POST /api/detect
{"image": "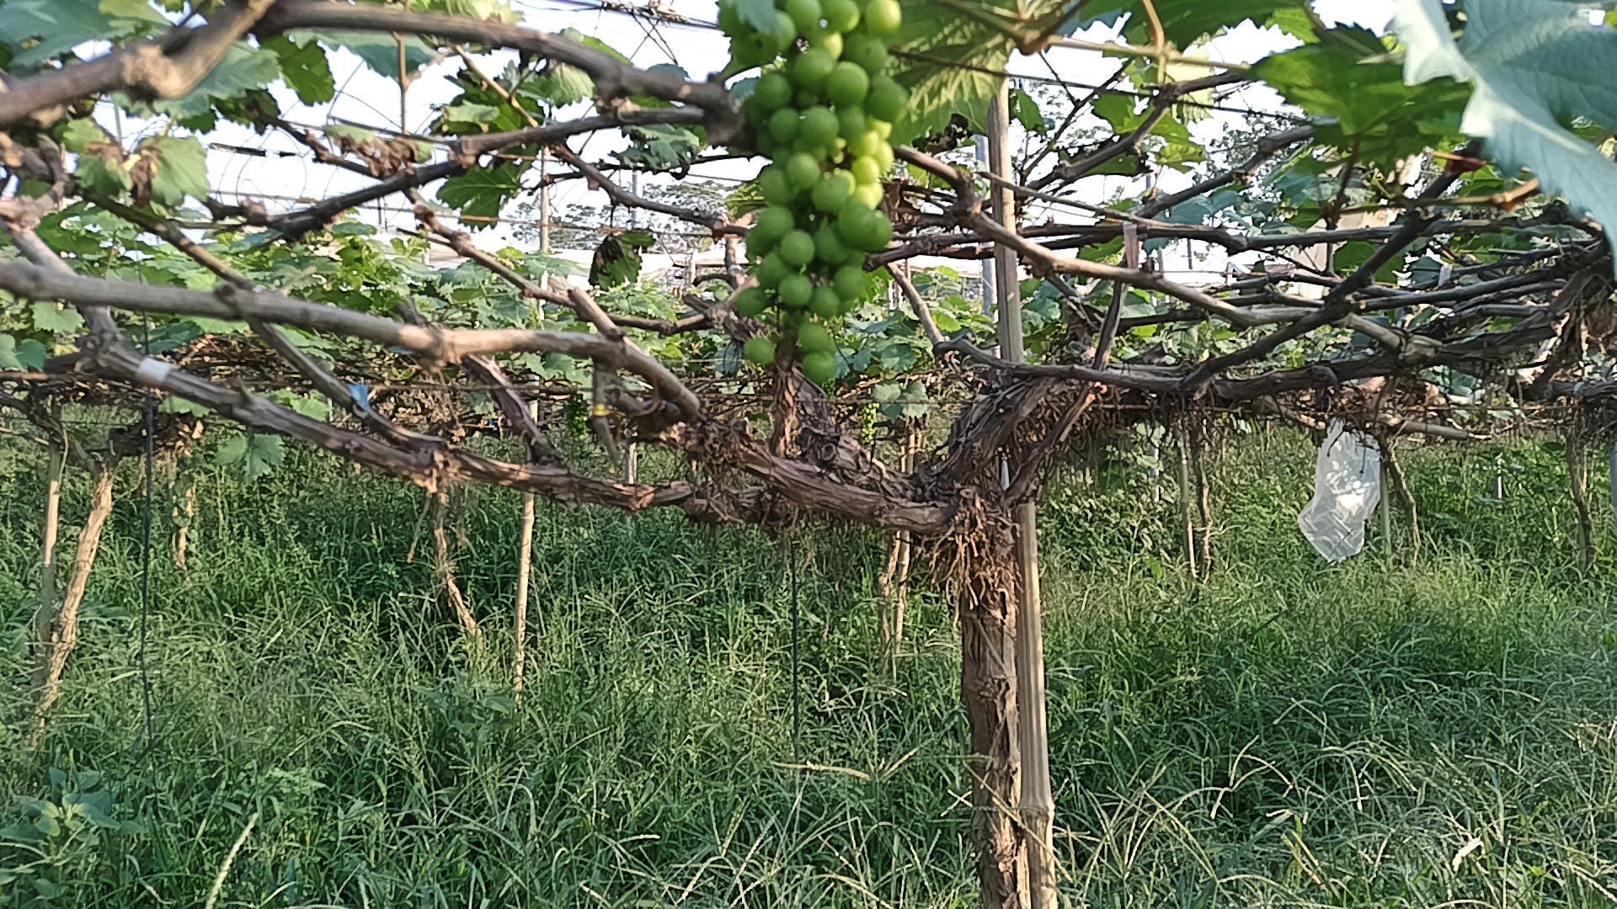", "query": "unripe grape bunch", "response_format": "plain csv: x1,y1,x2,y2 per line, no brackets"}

732,0,908,383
